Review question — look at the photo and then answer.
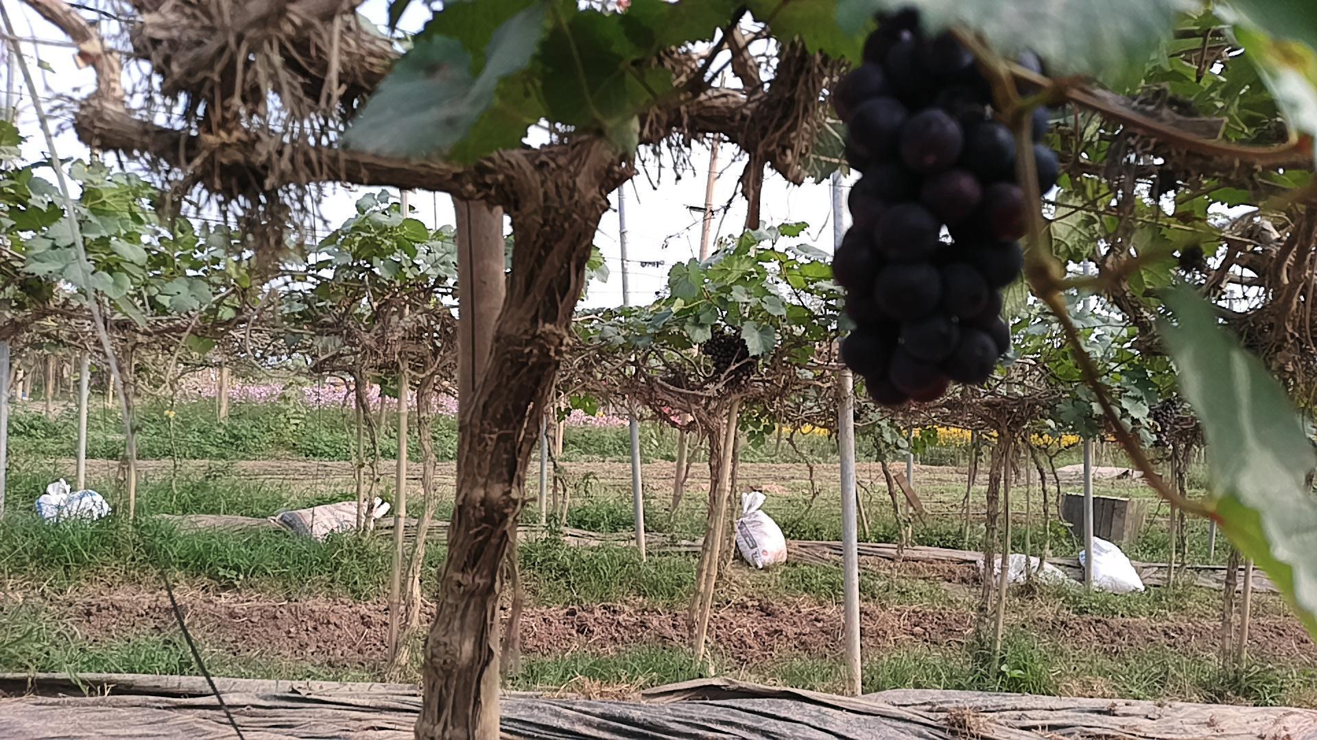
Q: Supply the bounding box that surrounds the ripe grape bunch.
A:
[832,10,1025,406]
